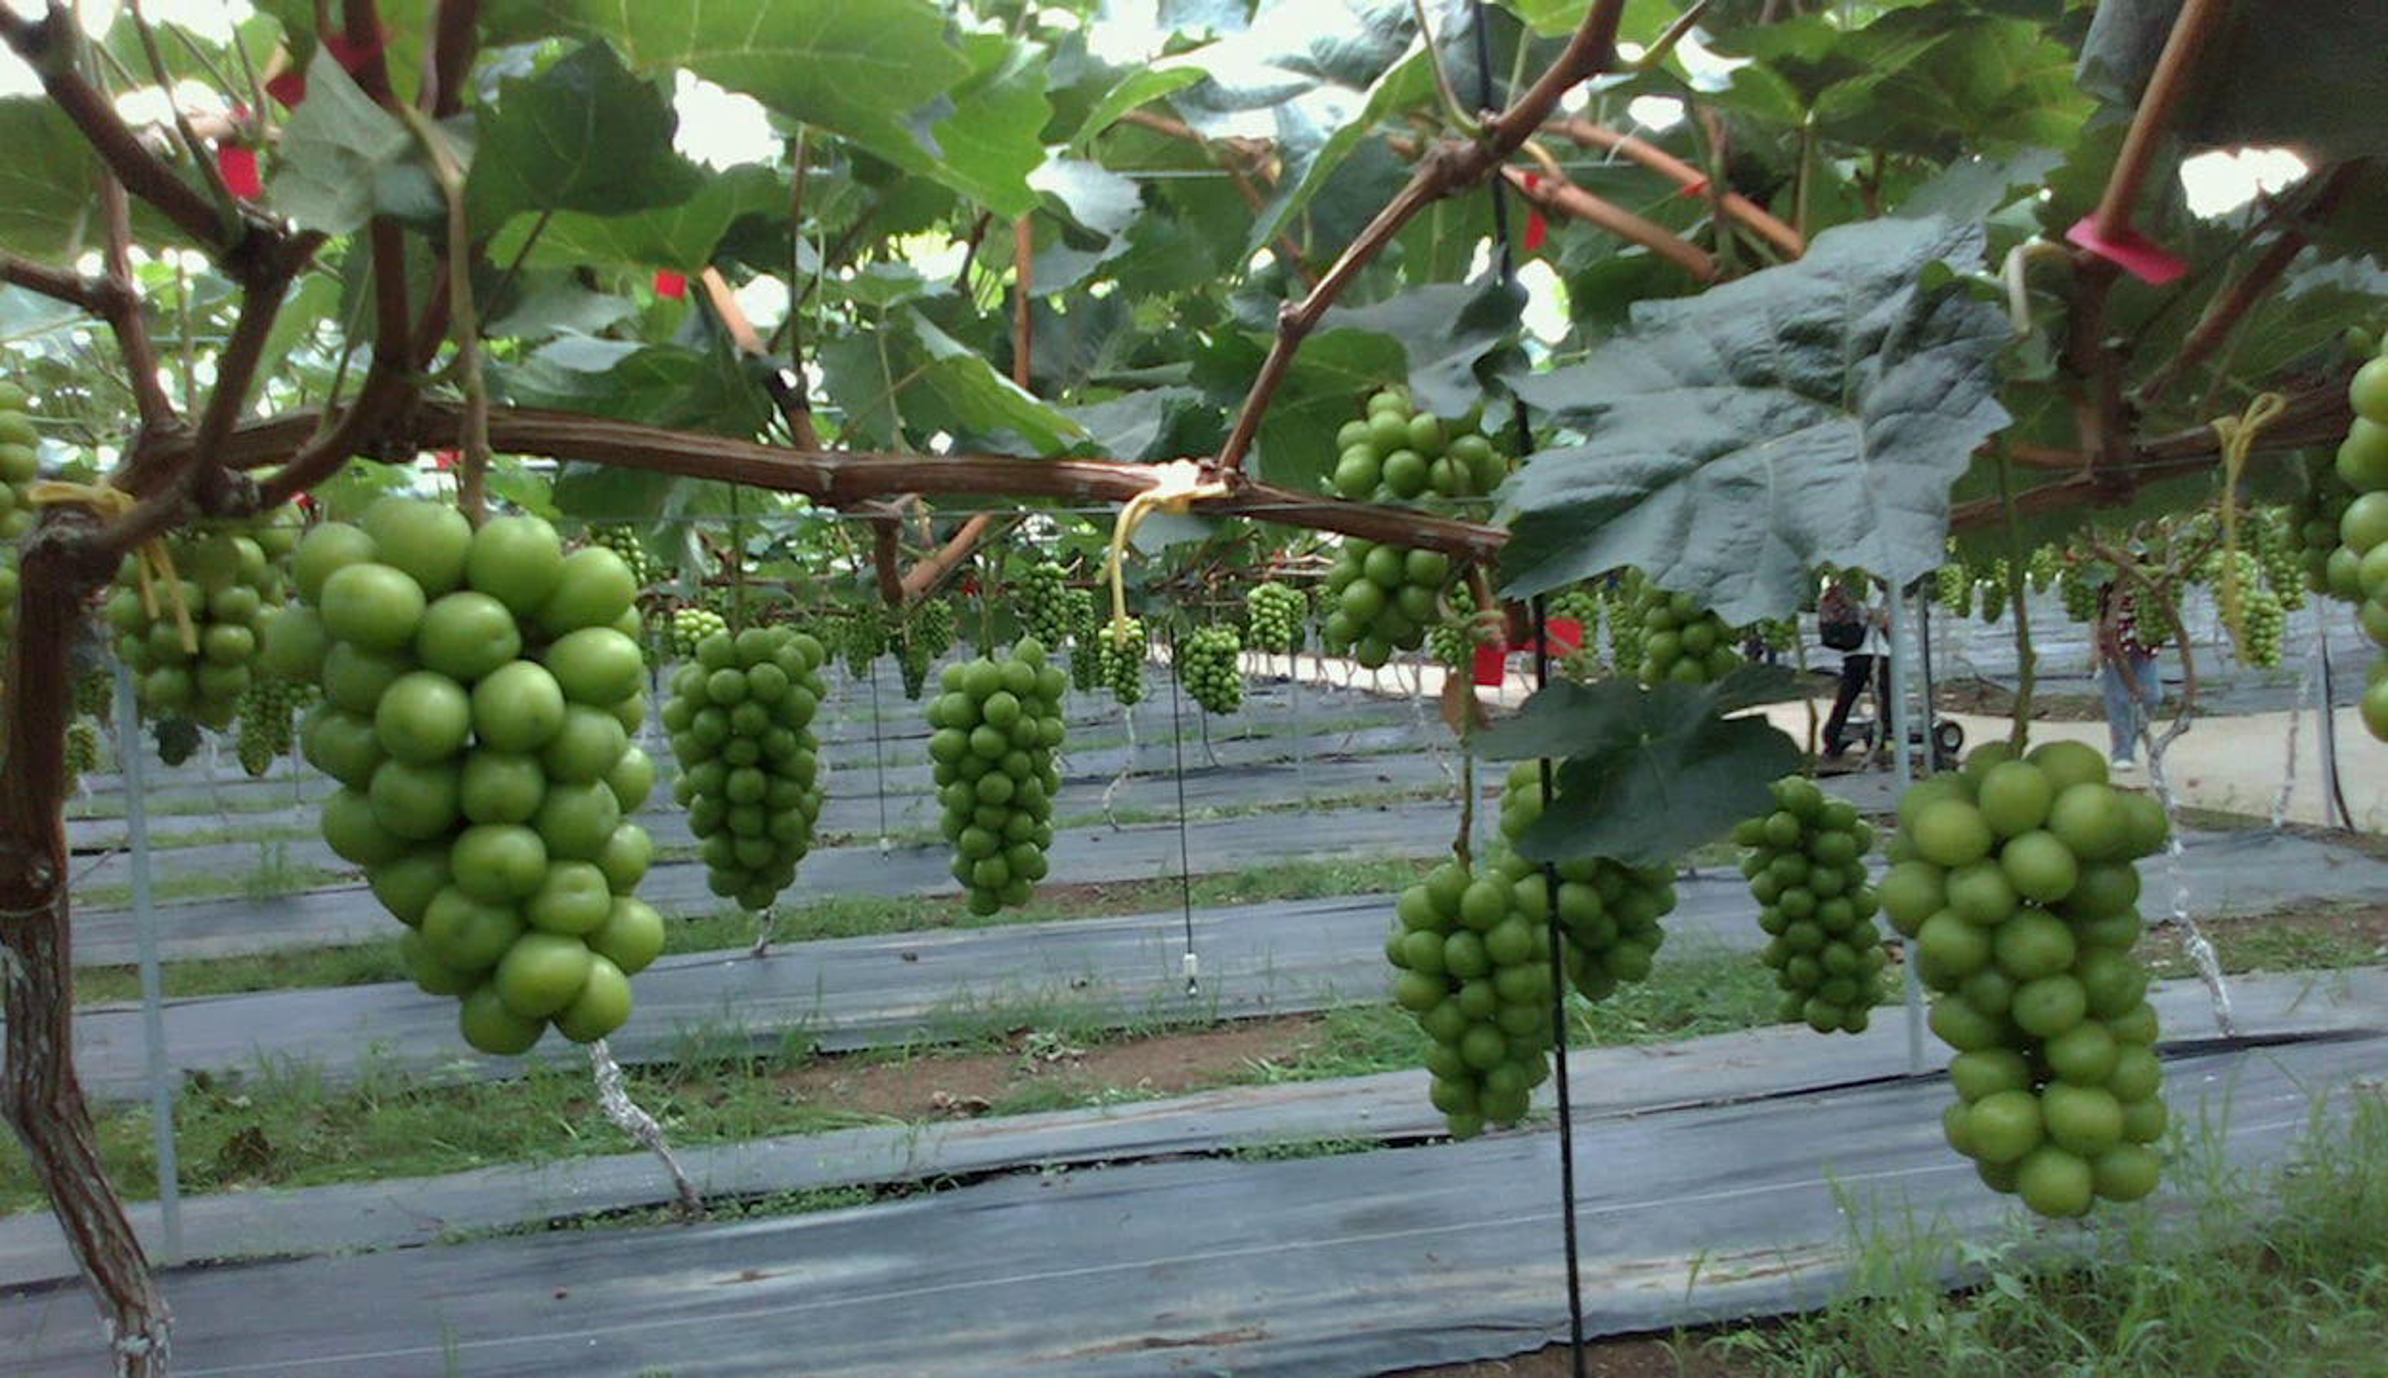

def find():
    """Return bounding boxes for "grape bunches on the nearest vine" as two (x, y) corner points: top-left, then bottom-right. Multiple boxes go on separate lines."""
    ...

(1877, 739), (2168, 1221)
(266, 496), (666, 1055)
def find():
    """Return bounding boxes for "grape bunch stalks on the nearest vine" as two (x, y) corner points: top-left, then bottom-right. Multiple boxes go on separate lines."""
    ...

(1994, 434), (2034, 760)
(398, 105), (486, 530)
